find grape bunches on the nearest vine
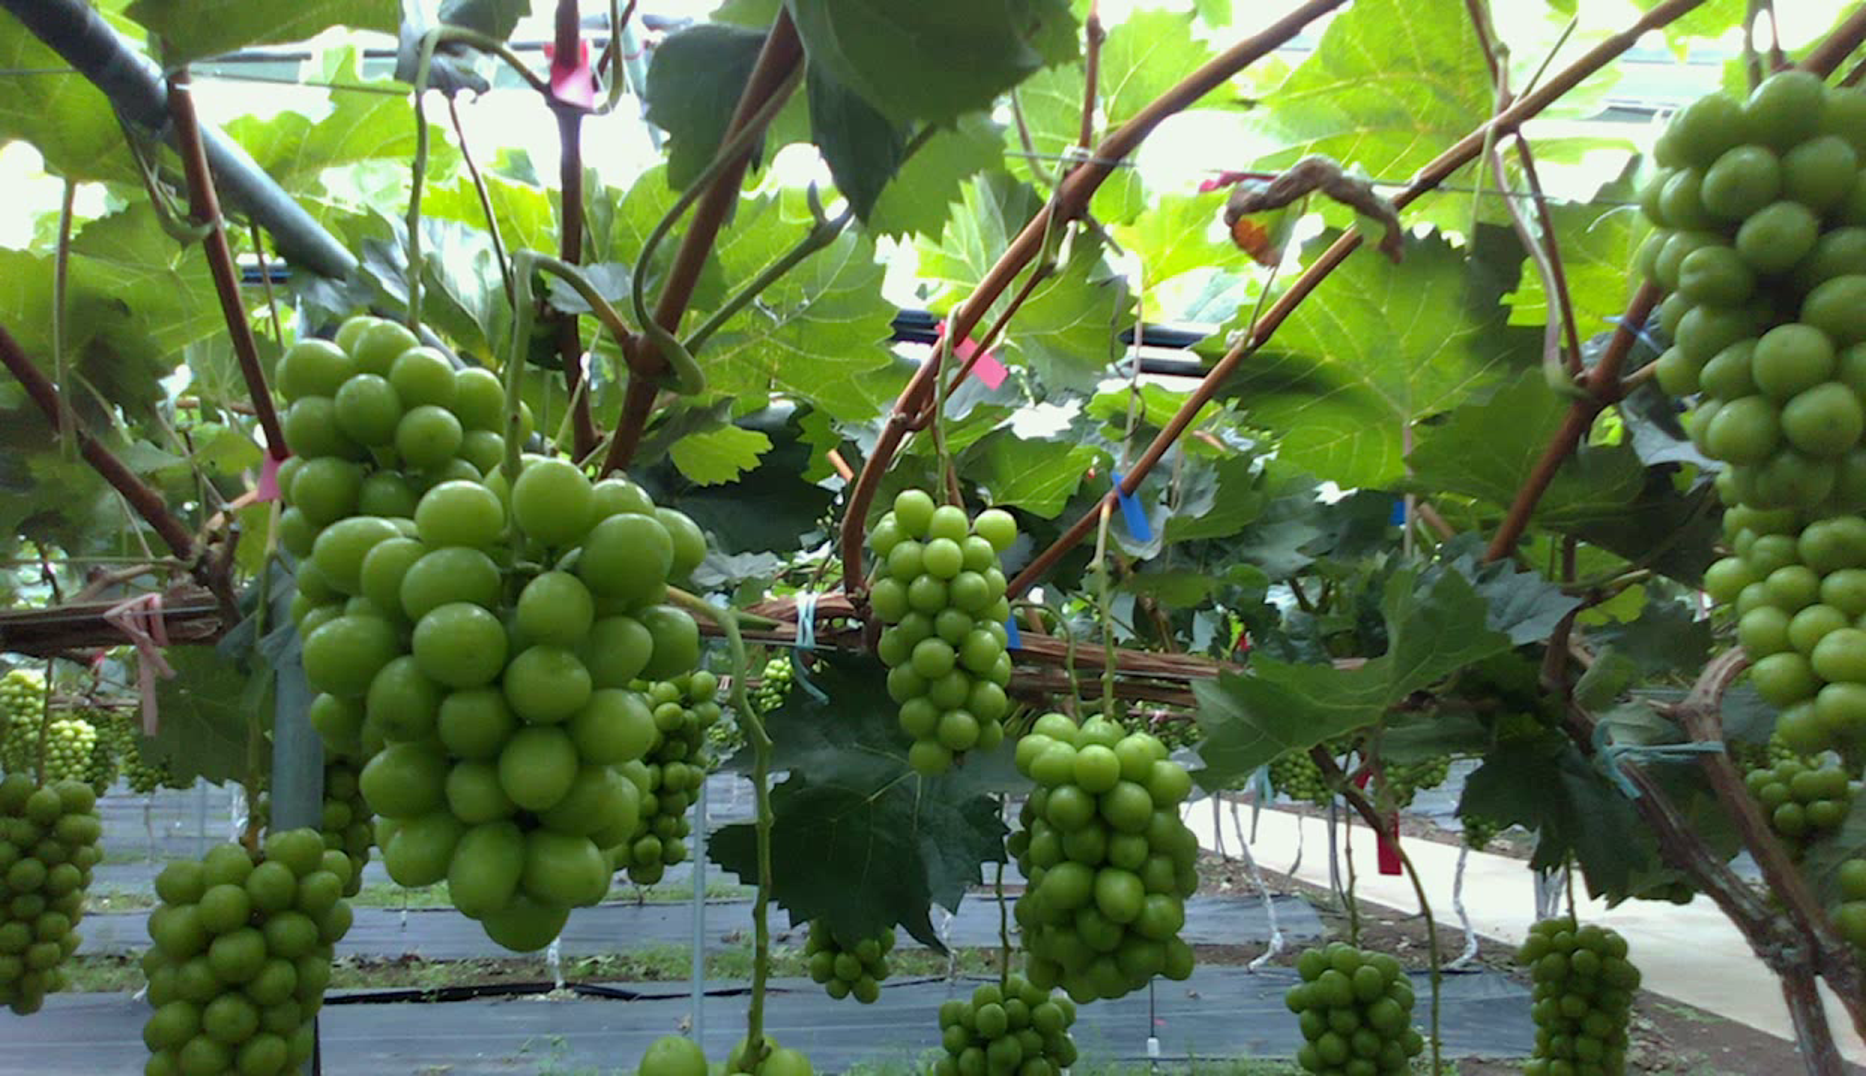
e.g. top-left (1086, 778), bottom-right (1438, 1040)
top-left (1637, 75), bottom-right (1865, 508)
top-left (298, 459), bottom-right (703, 952)
top-left (867, 489), bottom-right (1017, 777)
top-left (1015, 714), bottom-right (1202, 1004)
top-left (141, 829), bottom-right (351, 1075)
top-left (634, 1033), bottom-right (812, 1075)
top-left (275, 317), bottom-right (501, 631)
top-left (1708, 499), bottom-right (1865, 774)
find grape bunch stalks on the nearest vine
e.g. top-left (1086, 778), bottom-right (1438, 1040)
top-left (1743, 0), bottom-right (1764, 85)
top-left (934, 320), bottom-right (957, 504)
top-left (242, 502), bottom-right (278, 862)
top-left (665, 586), bottom-right (780, 1072)
top-left (499, 253), bottom-right (619, 477)
top-left (1084, 508), bottom-right (1114, 717)
top-left (404, 28), bottom-right (522, 333)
